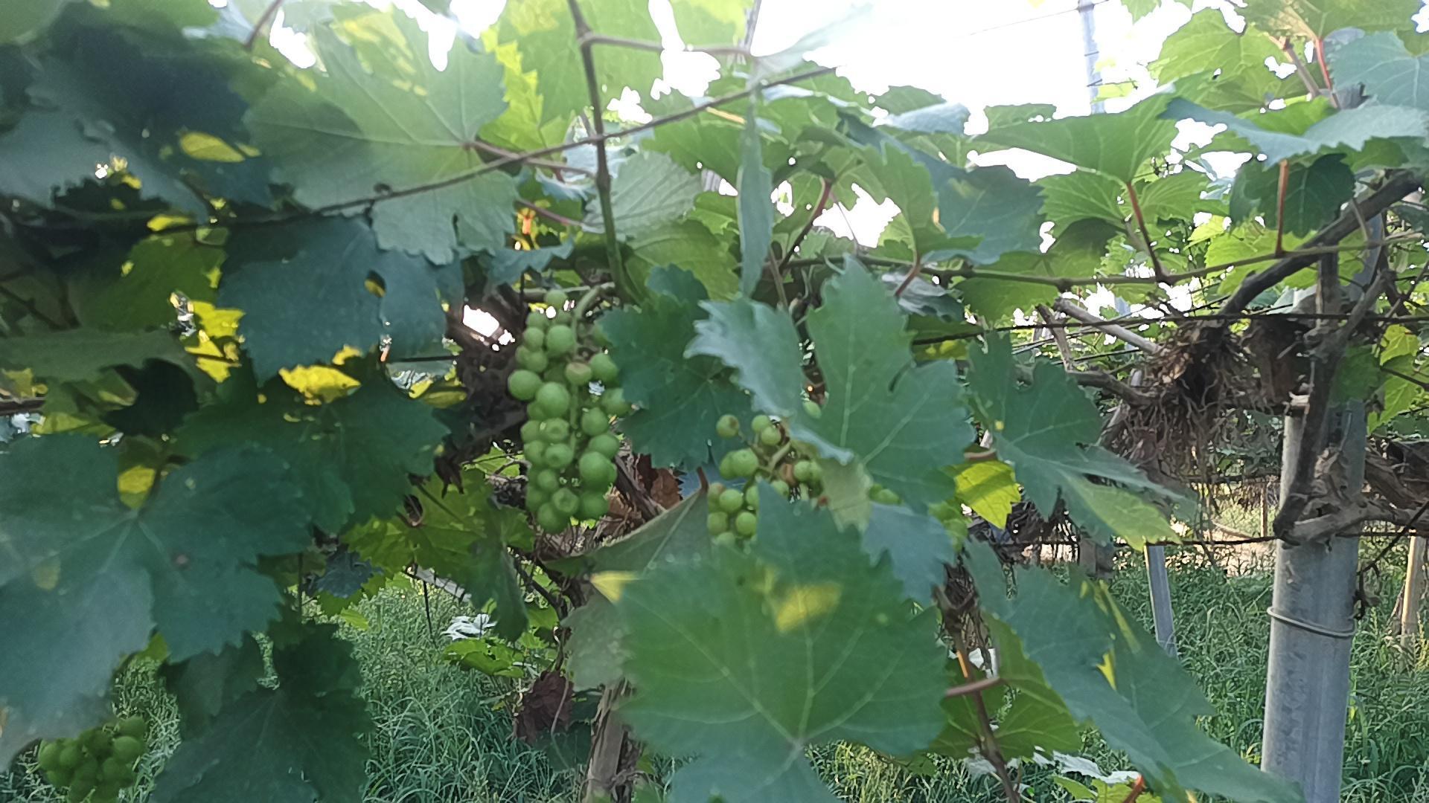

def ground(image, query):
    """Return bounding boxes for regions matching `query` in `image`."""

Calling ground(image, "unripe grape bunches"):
[706,401,968,555]
[39,715,147,802]
[508,292,624,532]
